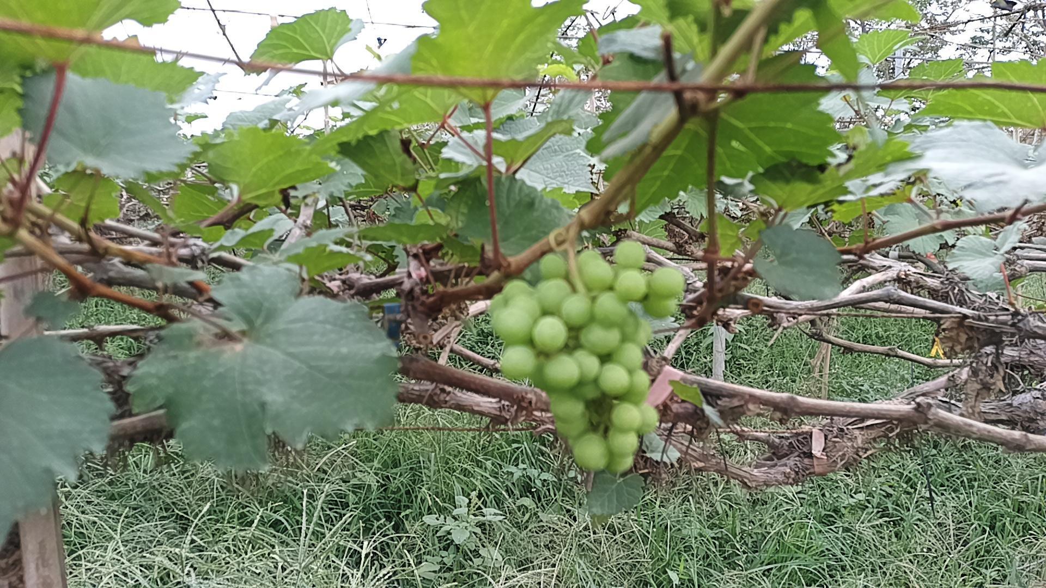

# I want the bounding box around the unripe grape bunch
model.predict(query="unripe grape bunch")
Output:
[490,241,684,473]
